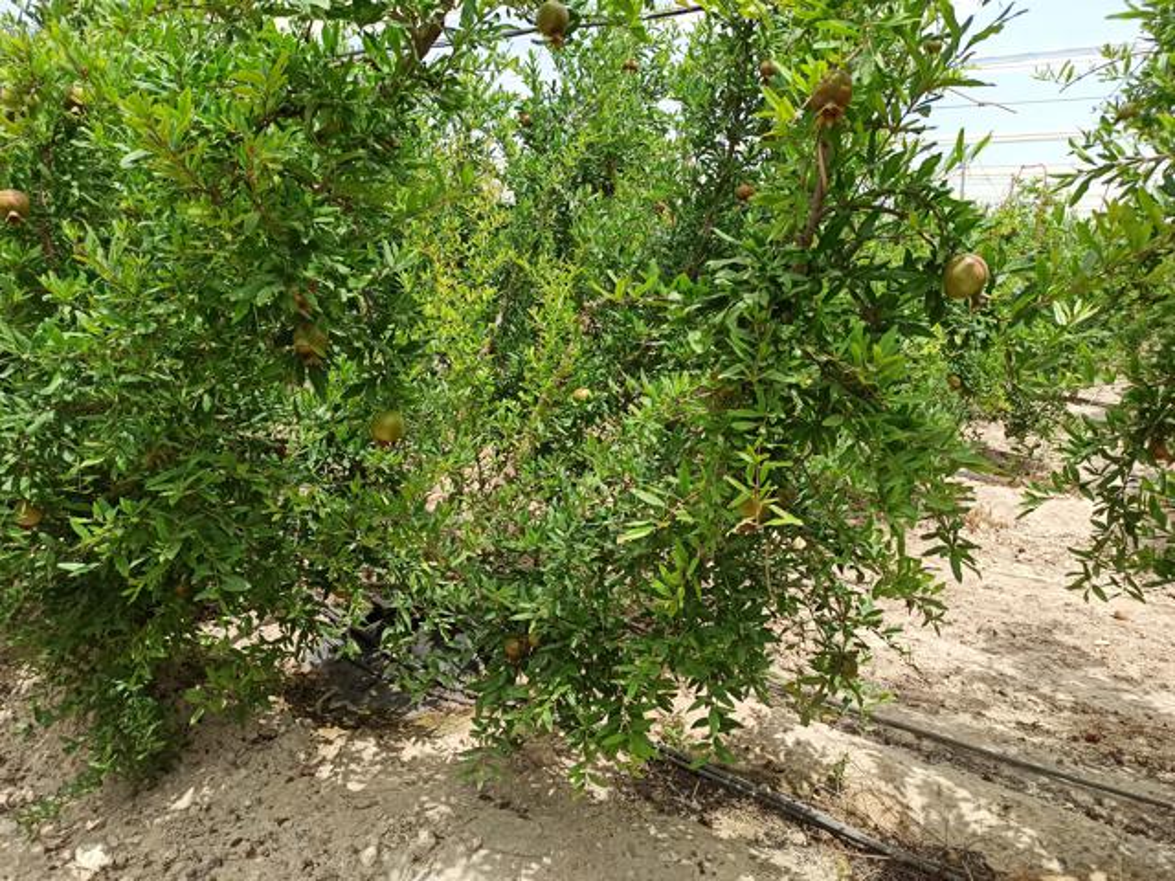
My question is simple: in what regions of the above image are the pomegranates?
[942,253,990,312]
[0,187,31,226]
[536,0,571,46]
[503,637,523,666]
[758,59,775,88]
[17,507,44,527]
[738,497,766,530]
[734,184,755,200]
[294,321,329,369]
[373,409,398,448]
[808,68,854,119]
